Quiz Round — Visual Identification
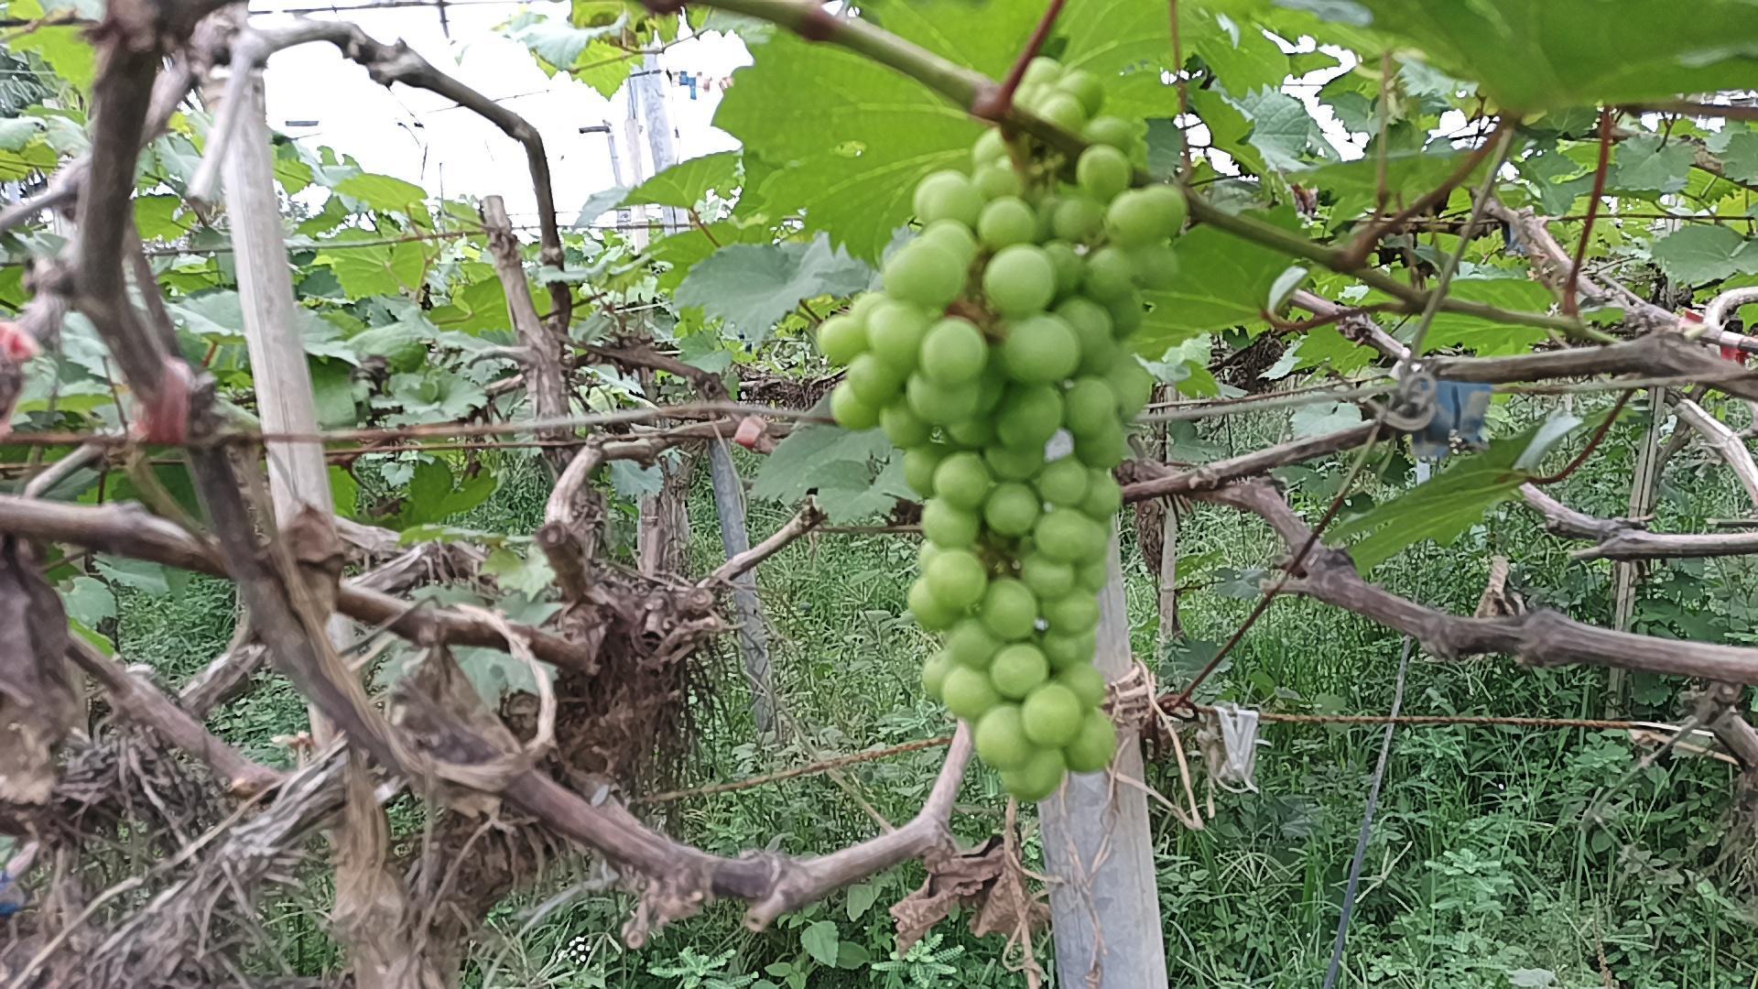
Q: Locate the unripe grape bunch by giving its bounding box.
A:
[819,59,1187,801]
